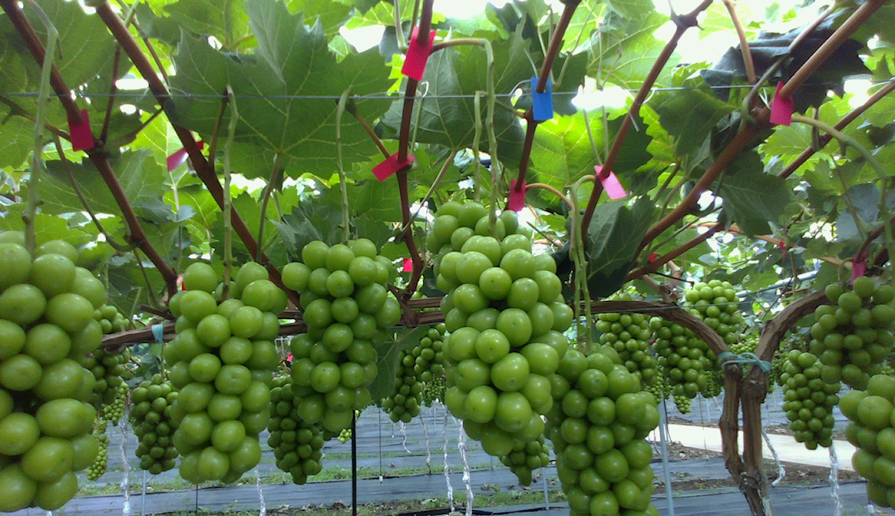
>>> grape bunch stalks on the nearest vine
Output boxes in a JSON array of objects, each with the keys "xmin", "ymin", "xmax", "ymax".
[
  {"xmin": 525, "ymin": 183, "xmax": 584, "ymax": 351},
  {"xmin": 432, "ymin": 37, "xmax": 498, "ymax": 237},
  {"xmin": 24, "ymin": 3, "xmax": 57, "ymax": 251},
  {"xmin": 570, "ymin": 174, "xmax": 595, "ymax": 354},
  {"xmin": 334, "ymin": 88, "xmax": 352, "ymax": 242},
  {"xmin": 787, "ymin": 117, "xmax": 894, "ymax": 255},
  {"xmin": 222, "ymin": 84, "xmax": 240, "ymax": 299}
]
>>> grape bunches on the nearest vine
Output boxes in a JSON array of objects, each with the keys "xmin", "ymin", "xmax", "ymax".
[
  {"xmin": 839, "ymin": 373, "xmax": 894, "ymax": 508},
  {"xmin": 810, "ymin": 276, "xmax": 894, "ymax": 389},
  {"xmin": 437, "ymin": 234, "xmax": 572, "ymax": 456},
  {"xmin": 164, "ymin": 261, "xmax": 286, "ymax": 484},
  {"xmin": 0, "ymin": 230, "xmax": 106, "ymax": 512},
  {"xmin": 545, "ymin": 343, "xmax": 660, "ymax": 515},
  {"xmin": 281, "ymin": 239, "xmax": 399, "ymax": 432}
]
